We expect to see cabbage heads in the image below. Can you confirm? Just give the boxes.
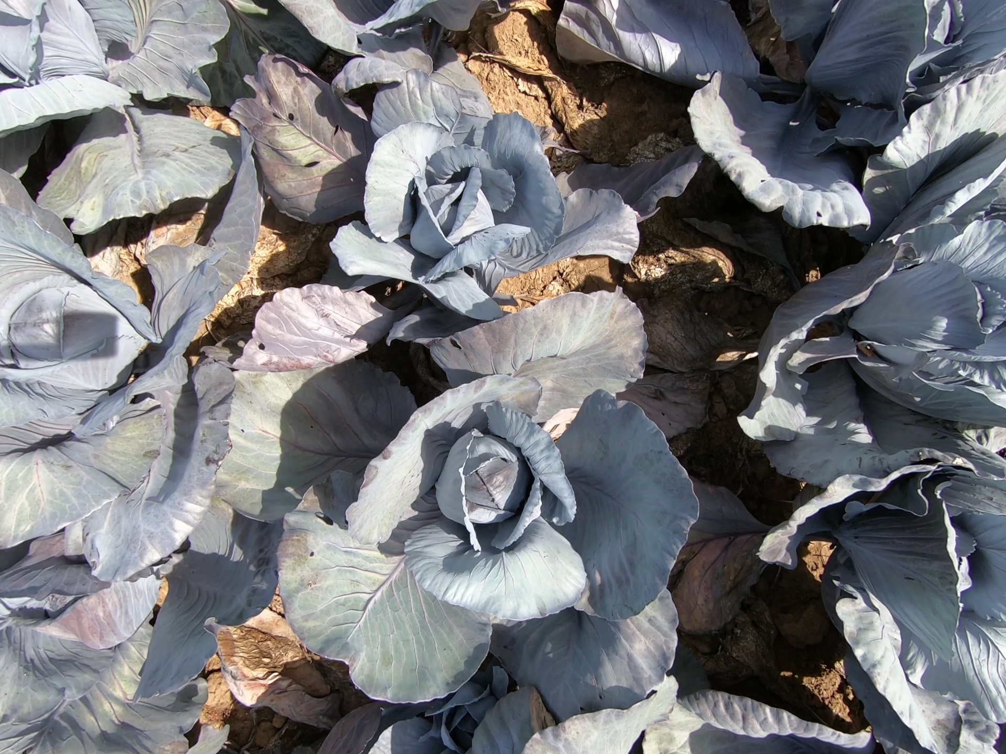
[3,1,99,80]
[442,435,530,522]
[873,269,985,350]
[866,2,953,76]
[873,530,970,599]
[42,560,154,627]
[427,186,487,243]
[5,286,124,375]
